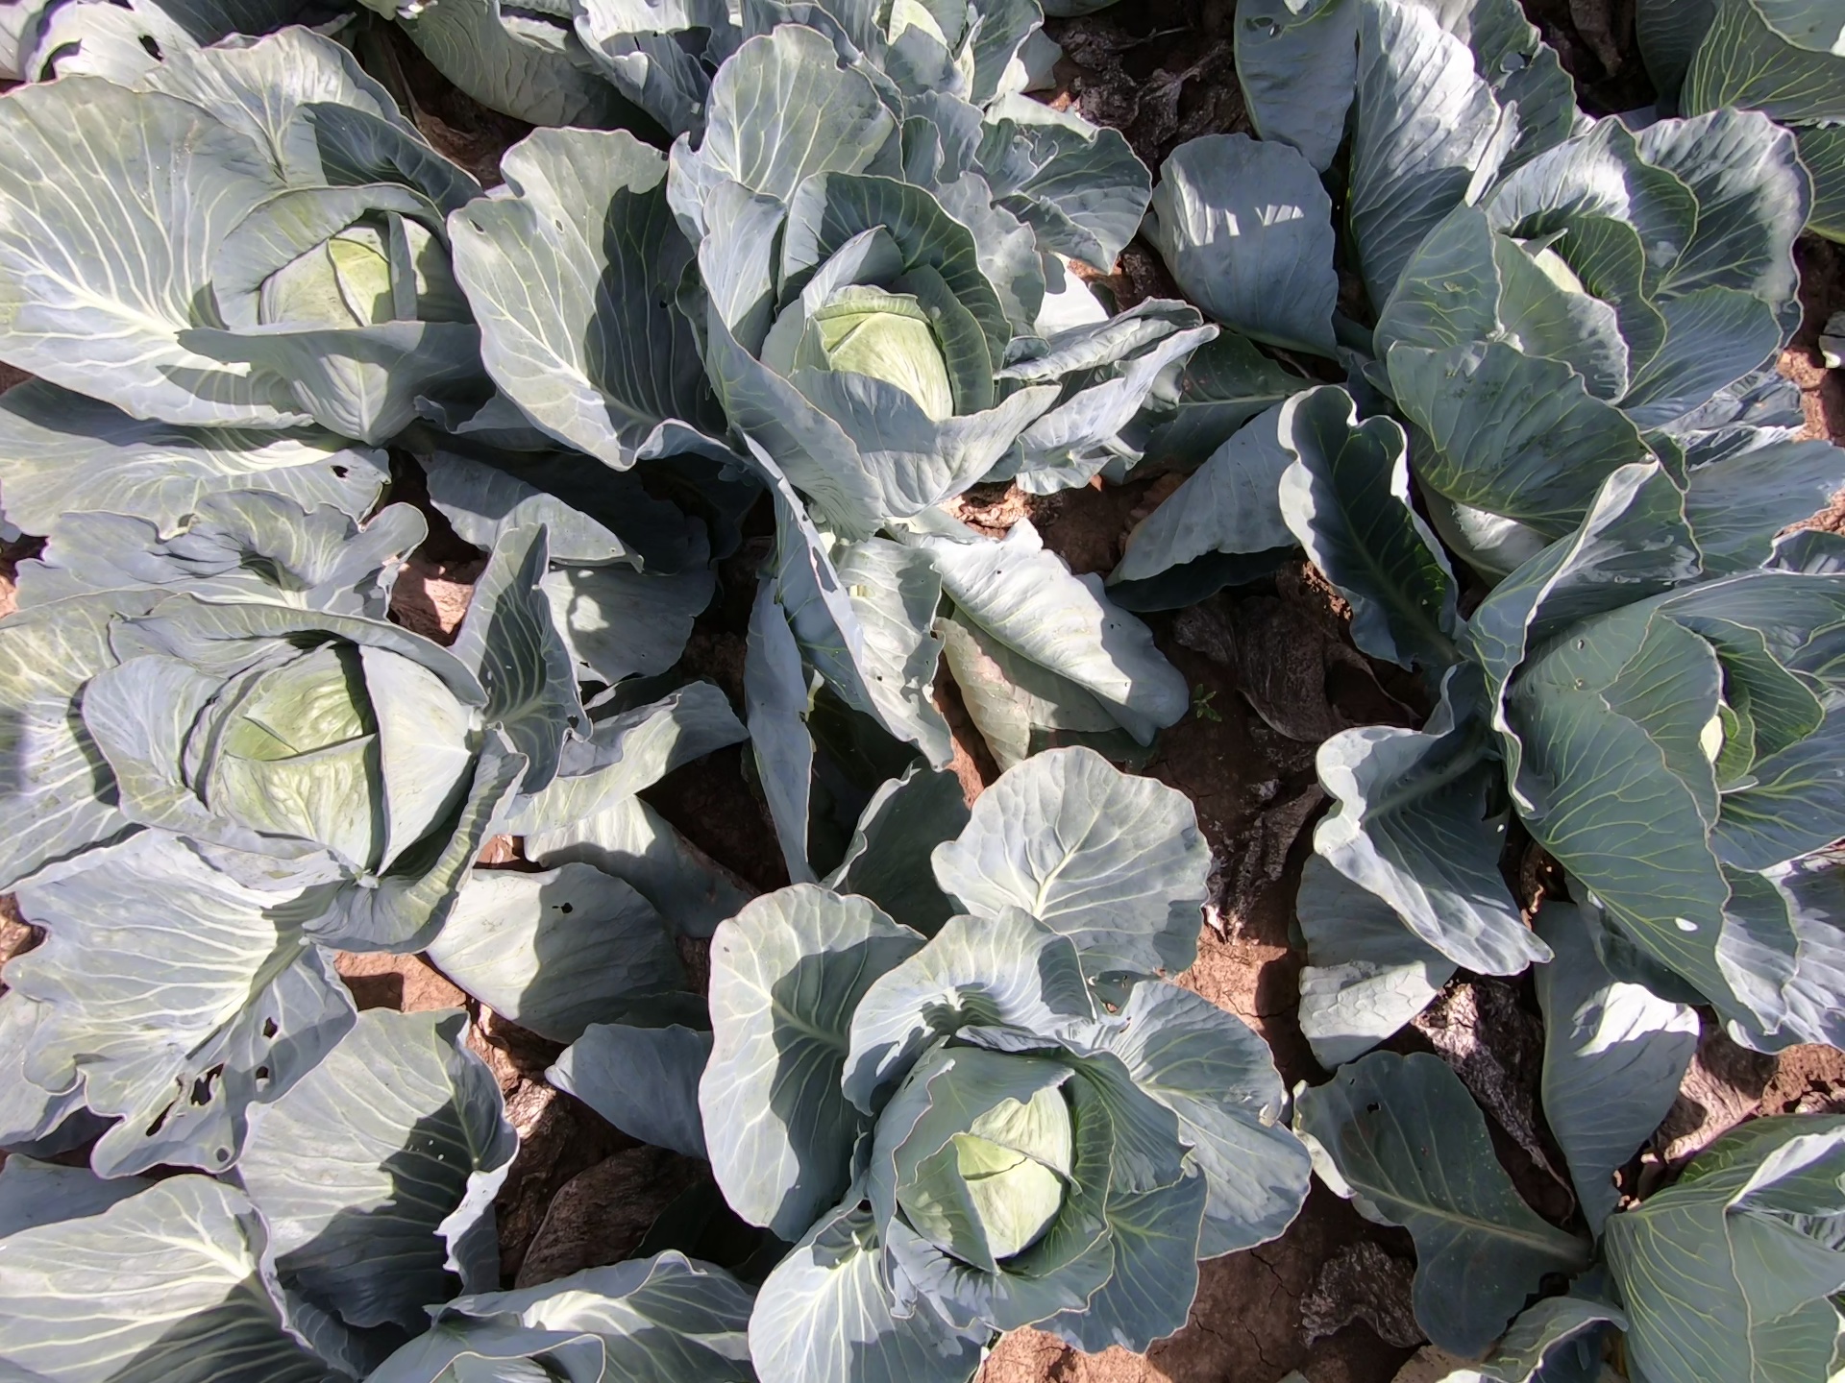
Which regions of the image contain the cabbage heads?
[755,281,957,507]
[839,0,966,131]
[891,1046,1073,1261]
[257,206,468,420]
[1584,644,1730,791]
[1420,234,1608,428]
[177,652,455,867]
